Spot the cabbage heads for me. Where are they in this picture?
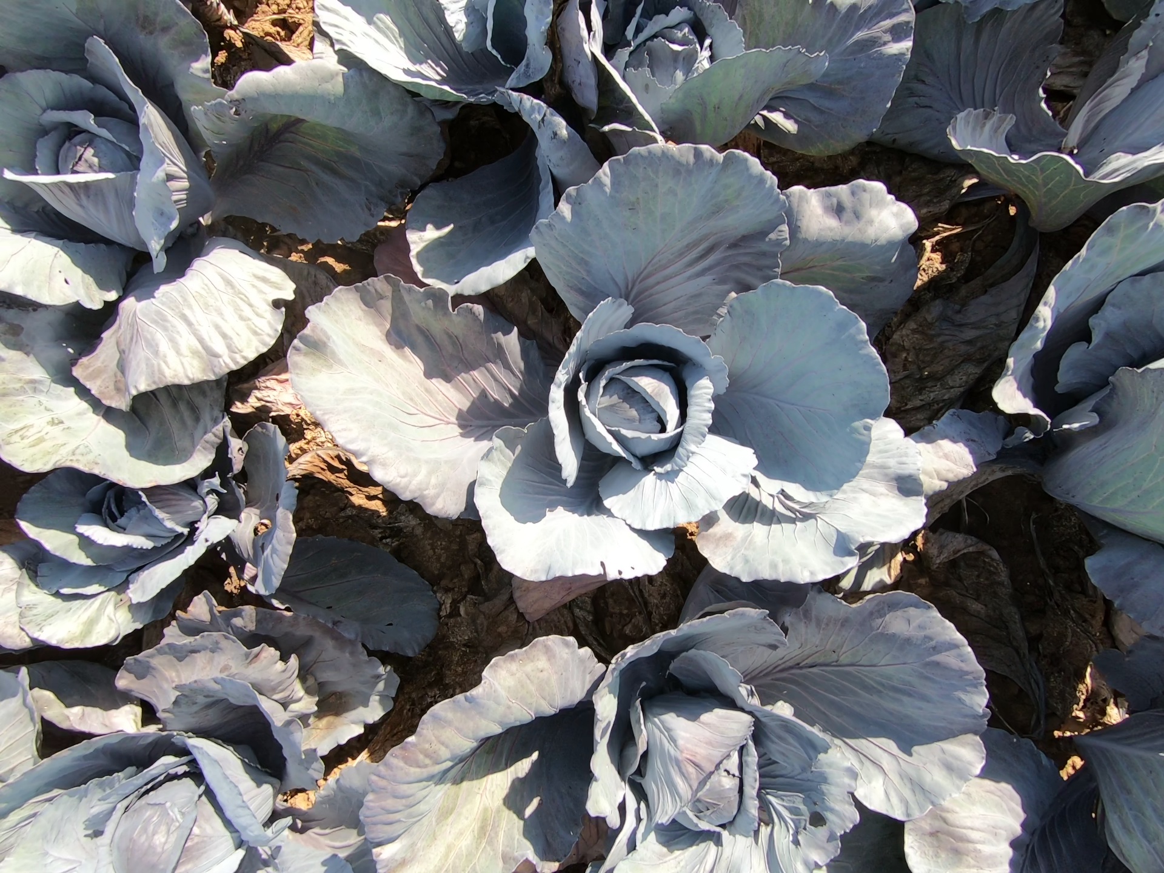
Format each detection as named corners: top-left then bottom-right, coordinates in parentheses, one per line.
top-left (111, 478), bottom-right (200, 537)
top-left (589, 366), bottom-right (681, 460)
top-left (111, 769), bottom-right (246, 869)
top-left (58, 127), bottom-right (176, 230)
top-left (632, 33), bottom-right (709, 113)
top-left (655, 715), bottom-right (754, 826)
